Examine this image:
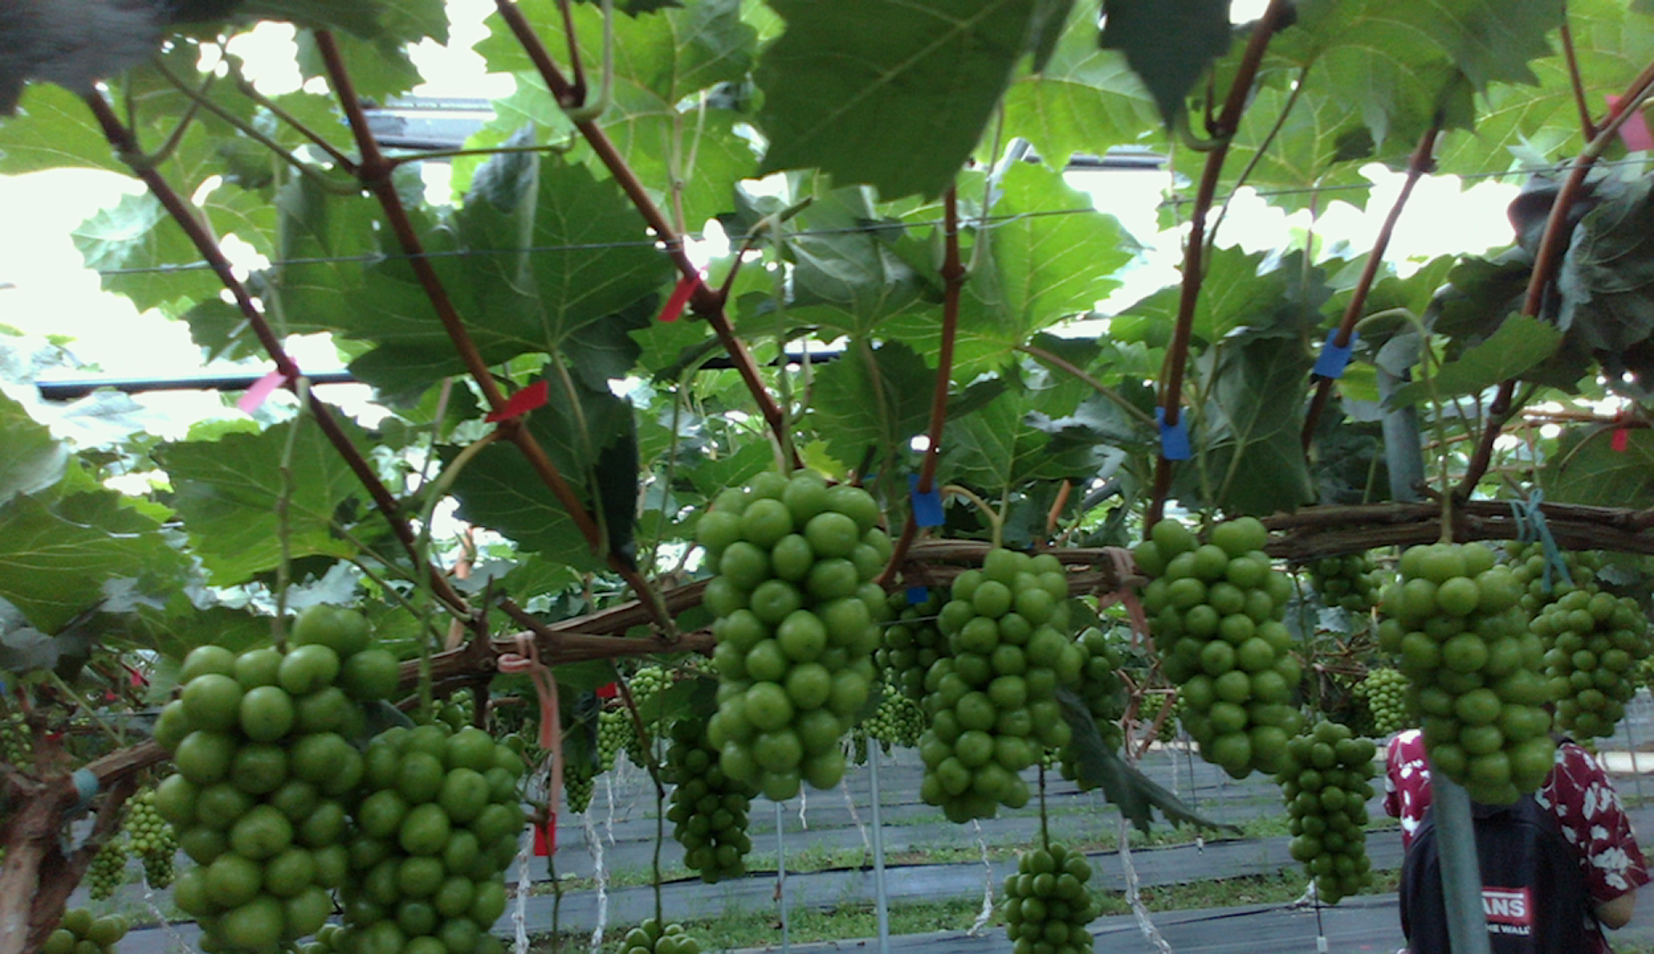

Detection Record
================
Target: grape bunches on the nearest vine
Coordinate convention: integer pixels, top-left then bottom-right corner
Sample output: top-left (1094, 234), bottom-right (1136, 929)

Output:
top-left (1136, 515), bottom-right (1304, 780)
top-left (329, 725), bottom-right (527, 953)
top-left (152, 603), bottom-right (400, 953)
top-left (917, 550), bottom-right (1085, 827)
top-left (693, 469), bottom-right (892, 804)
top-left (1378, 539), bottom-right (1555, 807)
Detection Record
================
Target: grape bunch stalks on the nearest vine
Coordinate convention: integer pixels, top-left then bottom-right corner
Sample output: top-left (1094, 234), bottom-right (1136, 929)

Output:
top-left (1356, 309), bottom-right (1453, 543)
top-left (413, 437), bottom-right (485, 723)
top-left (720, 196), bottom-right (808, 477)
top-left (1189, 356), bottom-right (1213, 527)
top-left (945, 486), bottom-right (1001, 546)
top-left (273, 378), bottom-right (317, 653)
